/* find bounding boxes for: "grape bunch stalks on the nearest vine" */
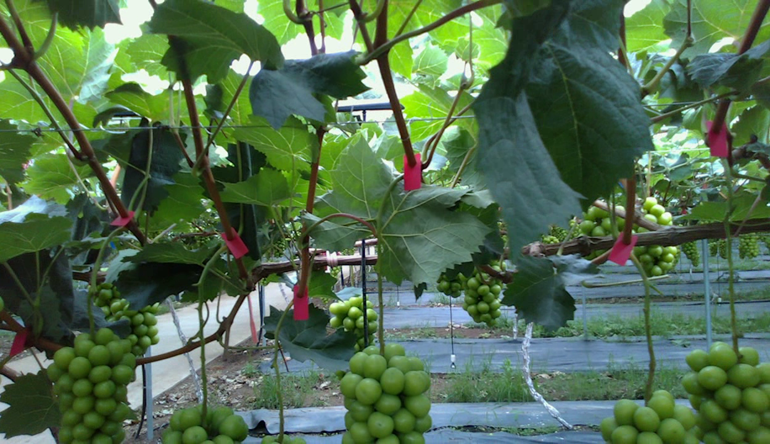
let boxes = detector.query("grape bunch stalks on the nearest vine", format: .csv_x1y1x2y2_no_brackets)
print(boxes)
719,157,743,364
197,245,228,427
86,227,122,340
629,252,656,407
377,173,403,356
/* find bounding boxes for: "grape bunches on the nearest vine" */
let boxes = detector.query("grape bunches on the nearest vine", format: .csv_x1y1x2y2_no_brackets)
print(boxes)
161,402,248,443
601,390,698,443
681,341,769,443
341,342,433,443
48,327,136,443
